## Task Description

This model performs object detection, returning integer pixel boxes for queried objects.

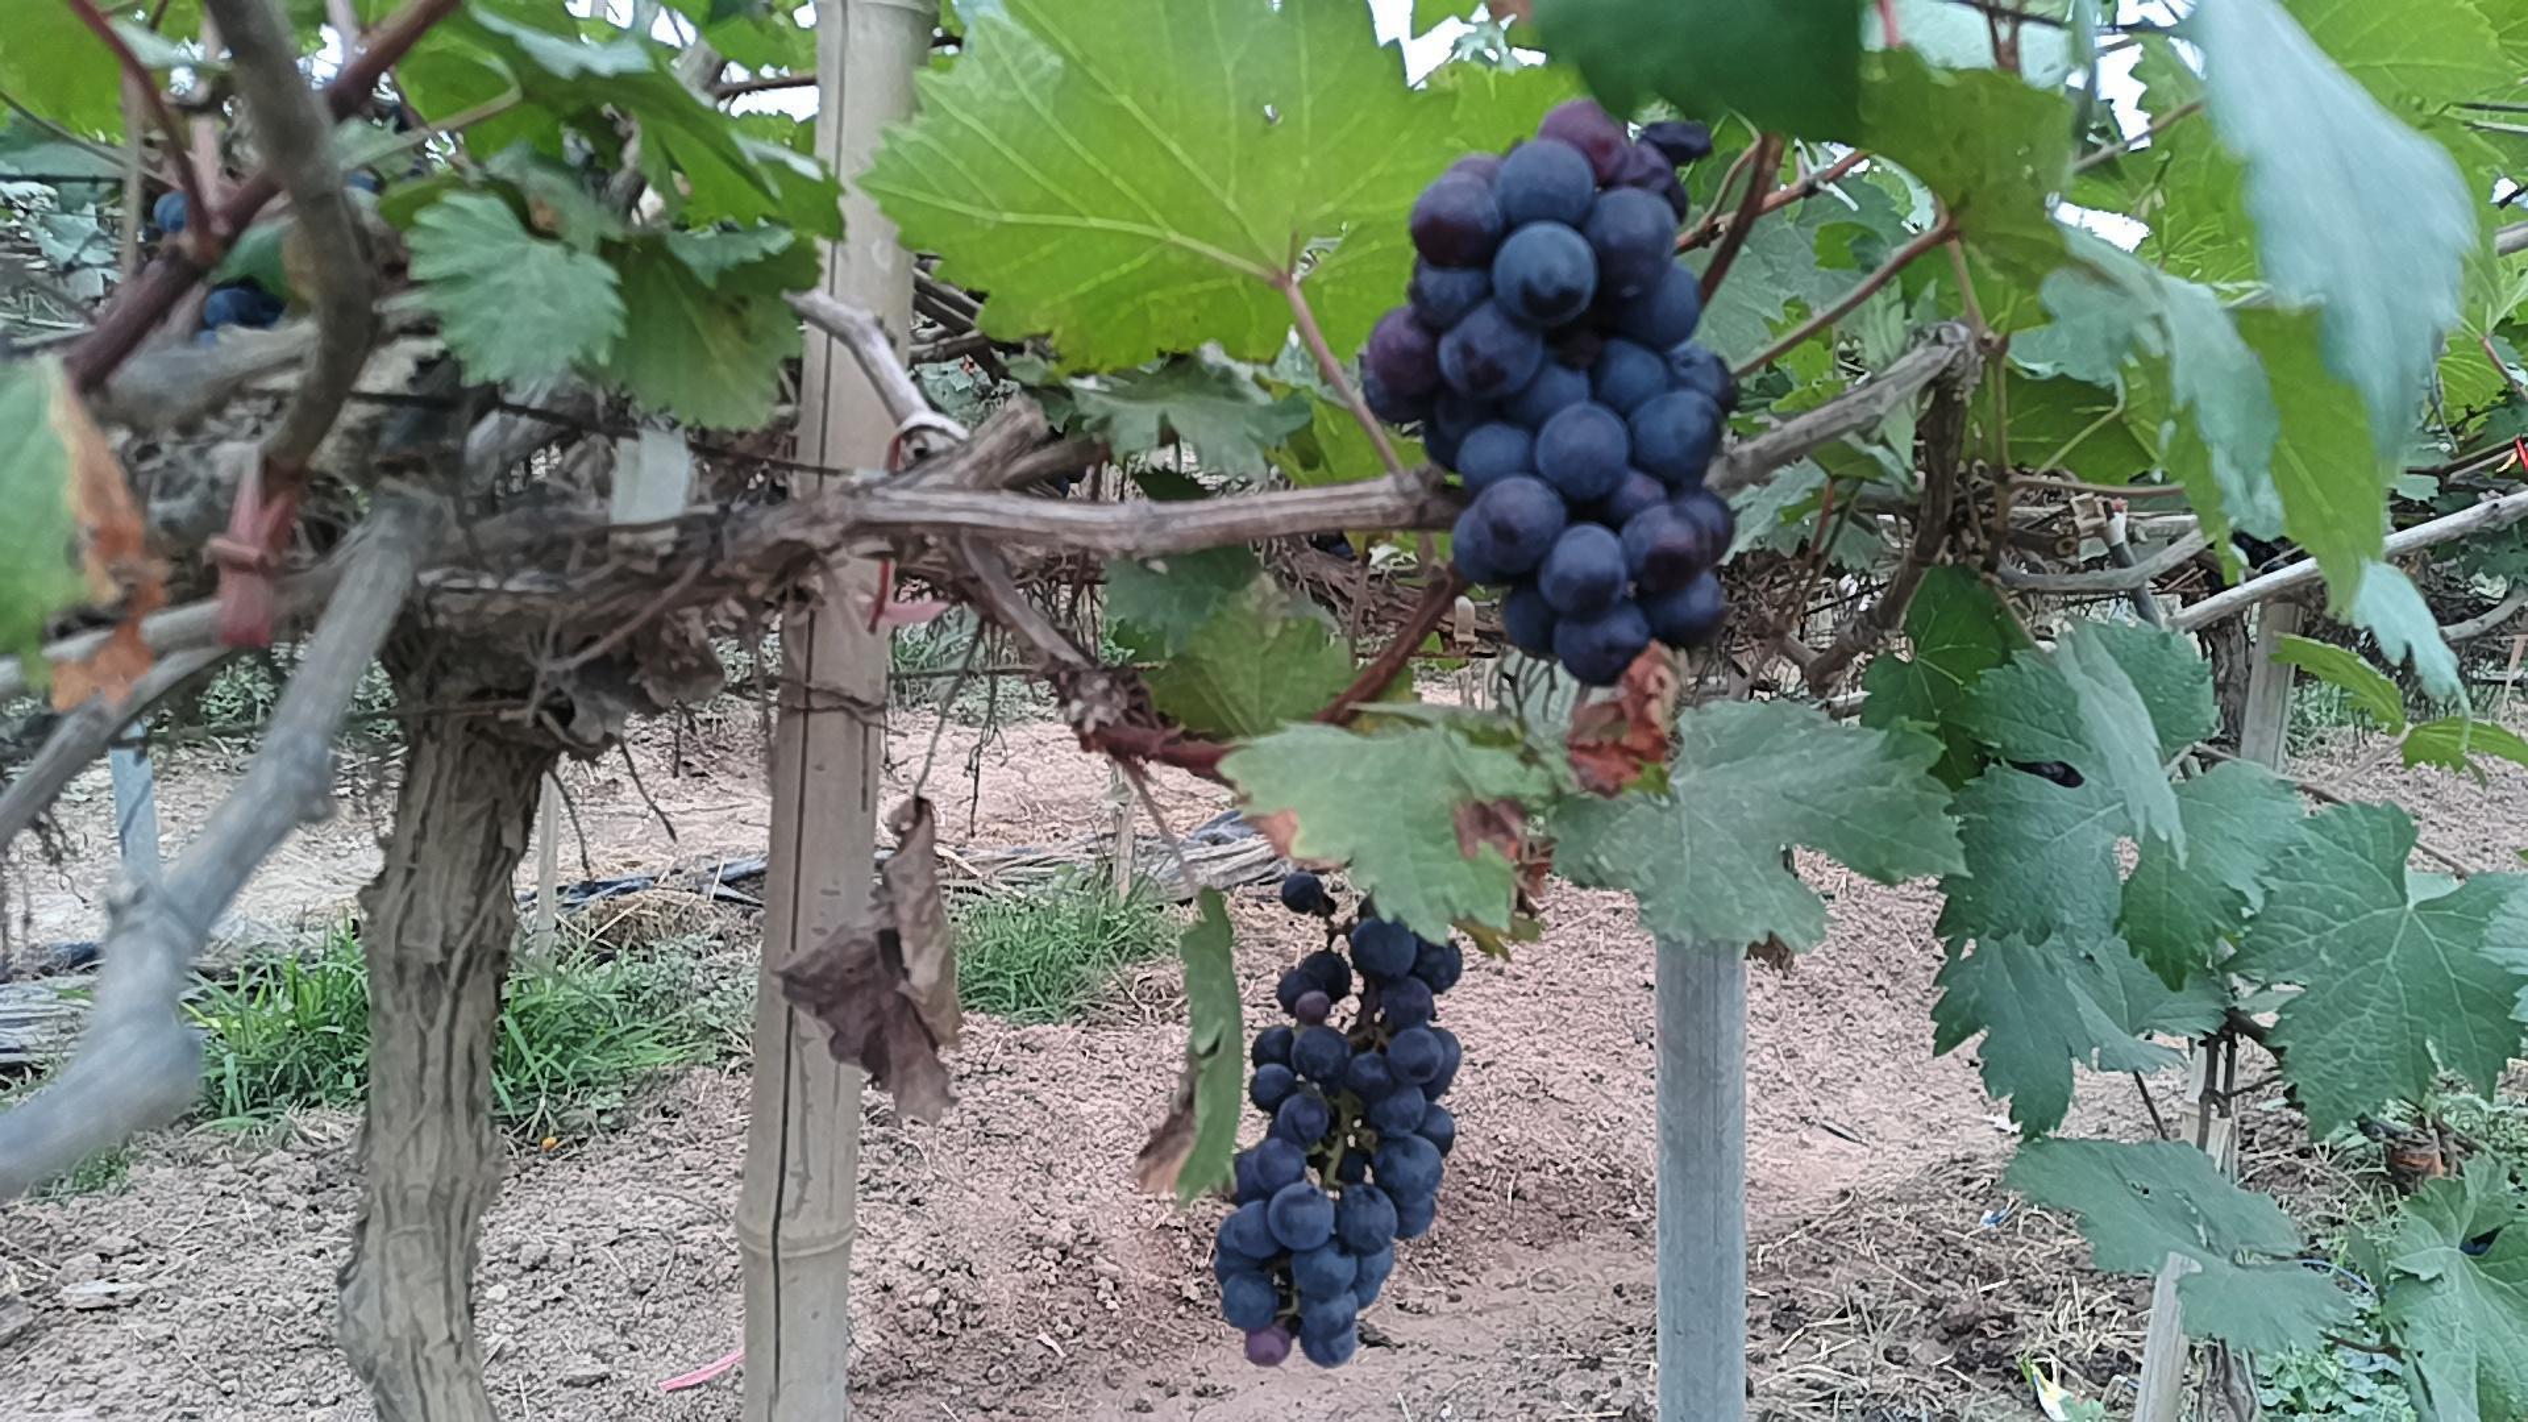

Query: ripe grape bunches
[1215,872,1461,1367]
[1361,99,1733,683]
